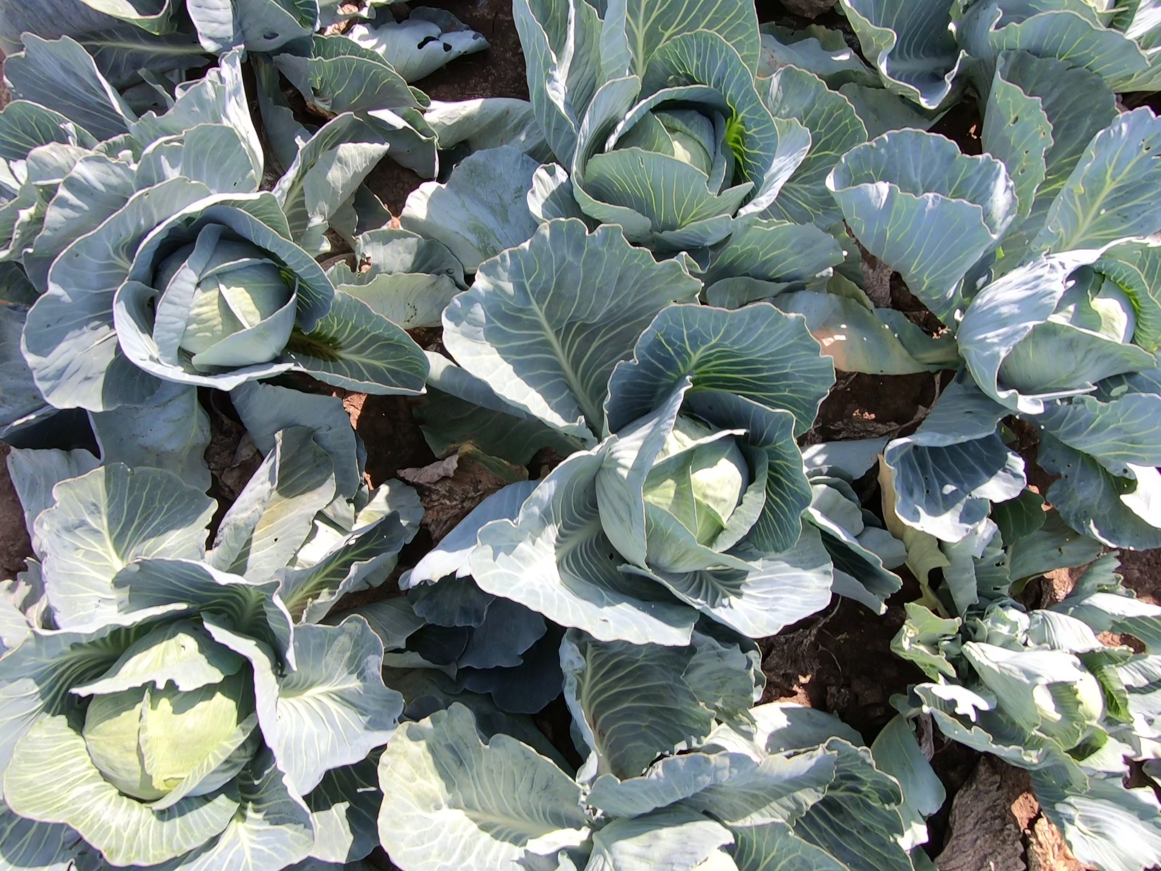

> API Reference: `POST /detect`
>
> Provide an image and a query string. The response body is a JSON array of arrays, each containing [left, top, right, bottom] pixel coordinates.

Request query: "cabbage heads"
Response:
[[618, 108, 729, 210], [84, 621, 265, 796], [596, 822, 737, 867], [163, 238, 291, 362], [979, 264, 1142, 386], [601, 418, 747, 563], [1010, 661, 1104, 747], [1004, 0, 1117, 62]]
